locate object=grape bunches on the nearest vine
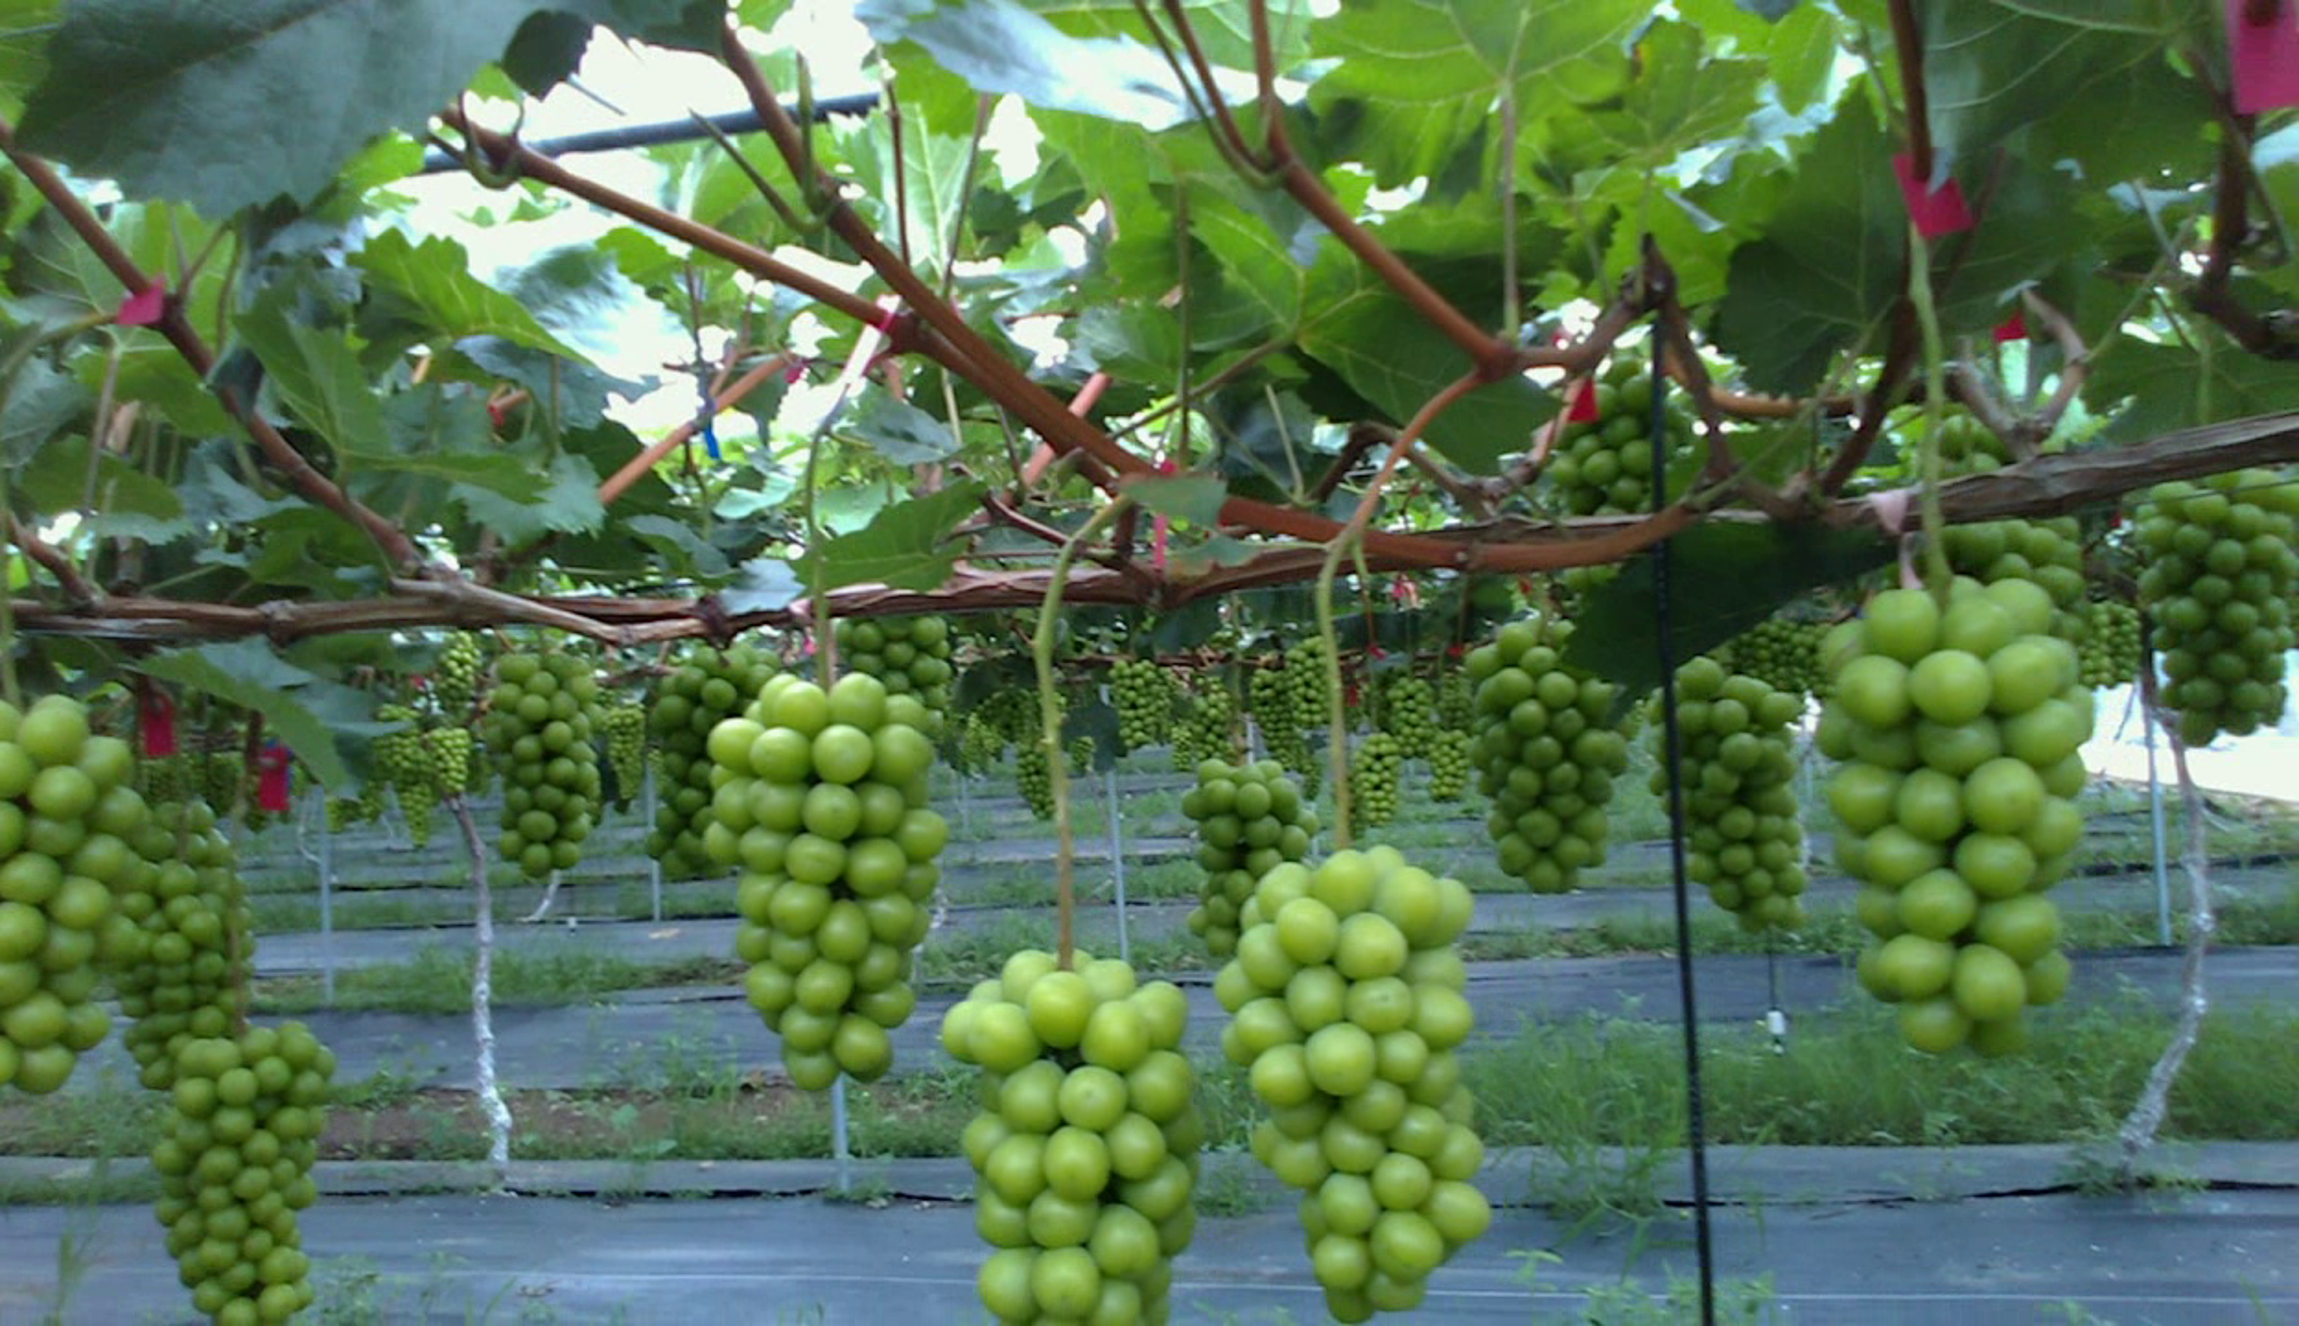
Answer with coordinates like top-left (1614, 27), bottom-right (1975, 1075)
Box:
top-left (939, 948), bottom-right (1203, 1324)
top-left (704, 670), bottom-right (947, 1092)
top-left (1212, 845), bottom-right (1490, 1324)
top-left (2, 692), bottom-right (146, 1092)
top-left (1816, 575), bottom-right (2096, 1059)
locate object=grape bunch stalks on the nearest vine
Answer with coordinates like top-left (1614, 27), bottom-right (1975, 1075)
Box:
top-left (803, 344), bottom-right (895, 691)
top-left (1908, 221), bottom-right (1951, 617)
top-left (1312, 366), bottom-right (1479, 847)
top-left (1030, 488), bottom-right (1131, 969)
